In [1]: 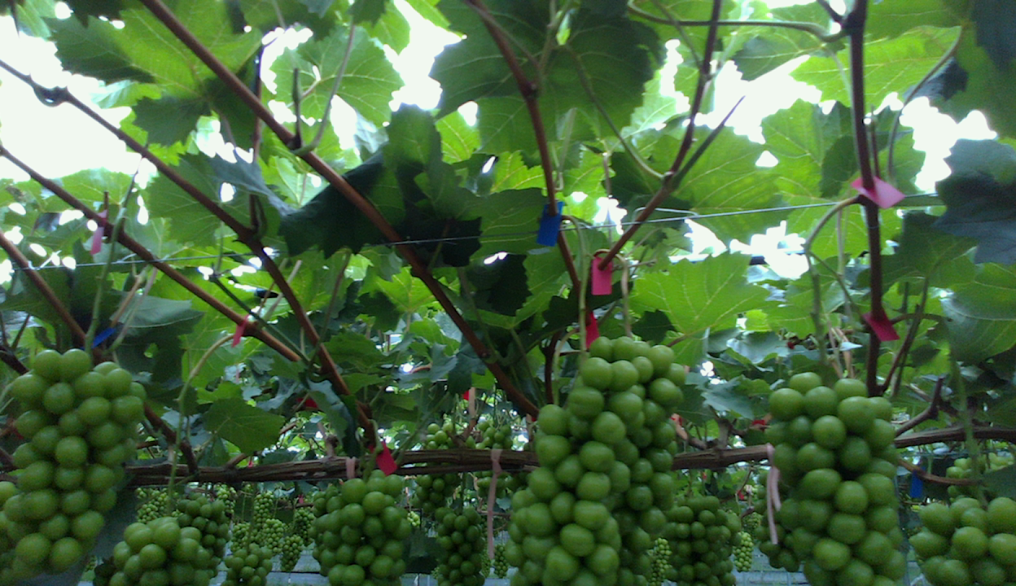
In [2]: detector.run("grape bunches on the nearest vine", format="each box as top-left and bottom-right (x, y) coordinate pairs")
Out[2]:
(4, 349), (147, 579)
(764, 371), (907, 585)
(504, 357), (646, 584)
(587, 335), (686, 585)
(109, 516), (208, 585)
(316, 469), (412, 584)
(910, 496), (1015, 585)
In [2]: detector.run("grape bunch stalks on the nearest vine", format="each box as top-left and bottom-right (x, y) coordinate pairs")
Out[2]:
(166, 333), (234, 517)
(362, 418), (383, 483)
(921, 313), (988, 510)
(563, 215), (587, 369)
(85, 208), (127, 371)
(801, 194), (867, 387)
